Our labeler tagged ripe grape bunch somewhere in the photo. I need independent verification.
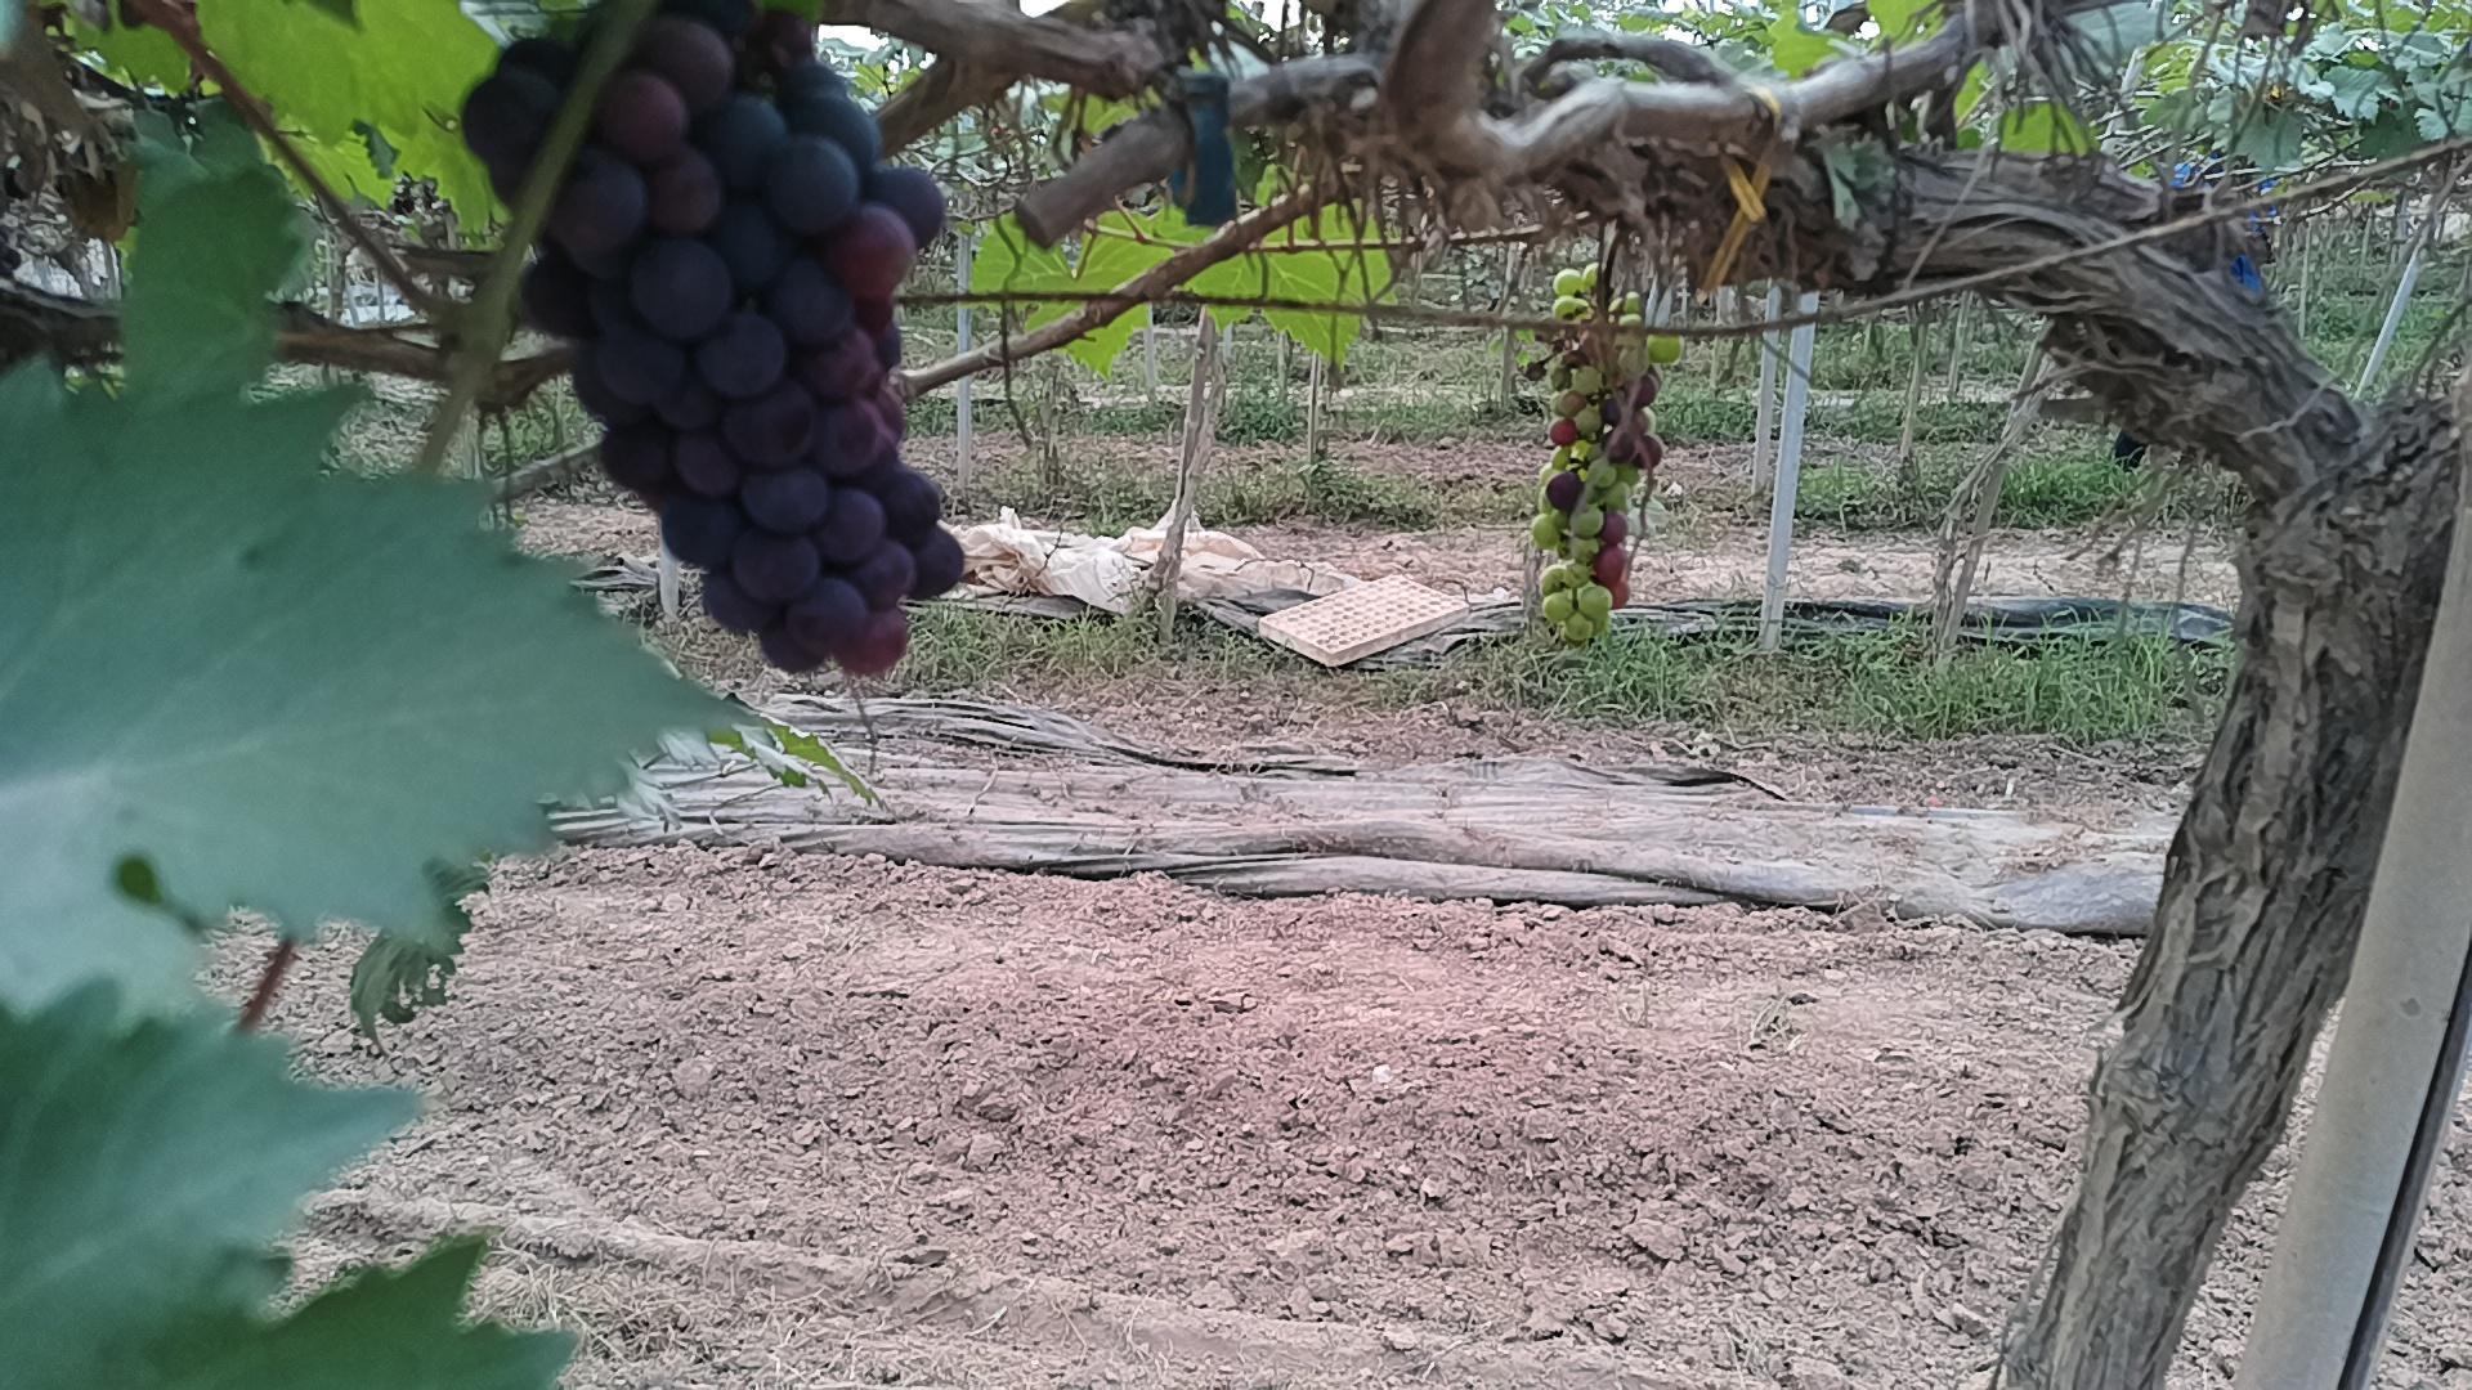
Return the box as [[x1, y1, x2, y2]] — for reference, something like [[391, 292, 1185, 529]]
[[462, 0, 964, 676]]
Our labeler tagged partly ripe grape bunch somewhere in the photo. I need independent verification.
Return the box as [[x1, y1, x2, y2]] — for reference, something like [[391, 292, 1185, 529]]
[[1531, 261, 1680, 641]]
